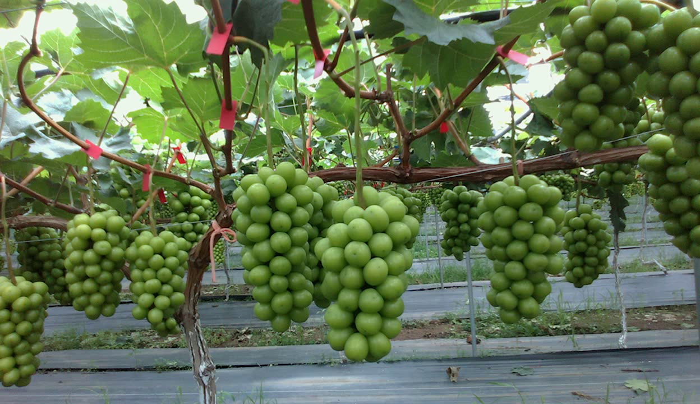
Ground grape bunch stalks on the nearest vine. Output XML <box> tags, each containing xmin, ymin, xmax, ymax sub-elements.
<box><xmin>86</xmin><ymin>154</ymin><xmax>94</xmax><ymax>217</ymax></box>
<box><xmin>148</xmin><ymin>173</ymin><xmax>158</xmax><ymax>236</ymax></box>
<box><xmin>496</xmin><ymin>56</ymin><xmax>518</xmax><ymax>186</ymax></box>
<box><xmin>685</xmin><ymin>0</ymin><xmax>697</xmax><ymax>15</ymax></box>
<box><xmin>233</xmin><ymin>36</ymin><xmax>274</xmax><ymax>170</ymax></box>
<box><xmin>324</xmin><ymin>0</ymin><xmax>367</xmax><ymax>209</ymax></box>
<box><xmin>641</xmin><ymin>0</ymin><xmax>679</xmax><ymax>12</ymax></box>
<box><xmin>1</xmin><ymin>176</ymin><xmax>17</xmax><ymax>285</ymax></box>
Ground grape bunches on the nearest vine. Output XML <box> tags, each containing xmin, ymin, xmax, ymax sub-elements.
<box><xmin>638</xmin><ymin>132</ymin><xmax>699</xmax><ymax>258</ymax></box>
<box><xmin>554</xmin><ymin>0</ymin><xmax>660</xmax><ymax>153</ymax></box>
<box><xmin>231</xmin><ymin>162</ymin><xmax>314</xmax><ymax>333</ymax></box>
<box><xmin>314</xmin><ymin>186</ymin><xmax>421</xmax><ymax>362</ymax></box>
<box><xmin>634</xmin><ymin>7</ymin><xmax>699</xmax><ymax>180</ymax></box>
<box><xmin>1</xmin><ymin>276</ymin><xmax>50</xmax><ymax>387</ymax></box>
<box><xmin>63</xmin><ymin>209</ymin><xmax>130</xmax><ymax>320</ymax></box>
<box><xmin>477</xmin><ymin>175</ymin><xmax>566</xmax><ymax>324</ymax></box>
<box><xmin>123</xmin><ymin>231</ymin><xmax>192</xmax><ymax>325</ymax></box>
